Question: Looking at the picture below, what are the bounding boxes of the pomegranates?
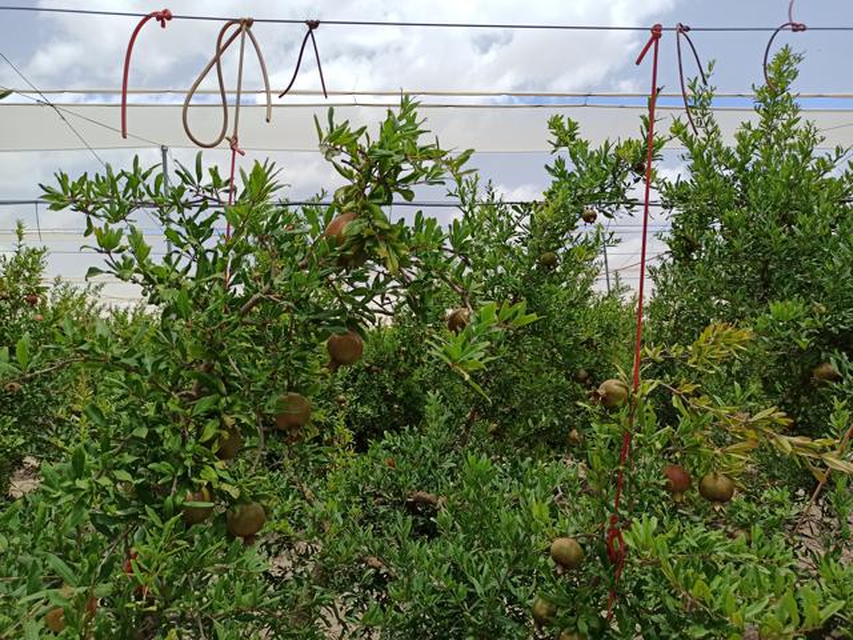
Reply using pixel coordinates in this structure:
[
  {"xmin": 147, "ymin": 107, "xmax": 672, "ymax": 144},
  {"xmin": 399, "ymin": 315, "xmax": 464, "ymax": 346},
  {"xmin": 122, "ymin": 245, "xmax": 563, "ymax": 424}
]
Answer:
[
  {"xmin": 698, "ymin": 471, "xmax": 736, "ymax": 515},
  {"xmin": 327, "ymin": 332, "xmax": 364, "ymax": 369},
  {"xmin": 227, "ymin": 500, "xmax": 267, "ymax": 547},
  {"xmin": 574, "ymin": 369, "xmax": 592, "ymax": 388},
  {"xmin": 662, "ymin": 464, "xmax": 692, "ymax": 504},
  {"xmin": 181, "ymin": 487, "xmax": 215, "ymax": 524},
  {"xmin": 336, "ymin": 395, "xmax": 347, "ymax": 408},
  {"xmin": 558, "ymin": 629, "xmax": 581, "ymax": 640},
  {"xmin": 325, "ymin": 212, "xmax": 368, "ymax": 267},
  {"xmin": 586, "ymin": 379, "xmax": 629, "ymax": 407},
  {"xmin": 549, "ymin": 536, "xmax": 585, "ymax": 576},
  {"xmin": 810, "ymin": 363, "xmax": 838, "ymax": 387},
  {"xmin": 565, "ymin": 428, "xmax": 581, "ymax": 445},
  {"xmin": 219, "ymin": 428, "xmax": 241, "ymax": 460},
  {"xmin": 541, "ymin": 251, "xmax": 557, "ymax": 269},
  {"xmin": 446, "ymin": 308, "xmax": 470, "ymax": 336},
  {"xmin": 530, "ymin": 597, "xmax": 556, "ymax": 623},
  {"xmin": 276, "ymin": 395, "xmax": 311, "ymax": 444},
  {"xmin": 45, "ymin": 587, "xmax": 97, "ymax": 632},
  {"xmin": 581, "ymin": 205, "xmax": 598, "ymax": 225}
]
